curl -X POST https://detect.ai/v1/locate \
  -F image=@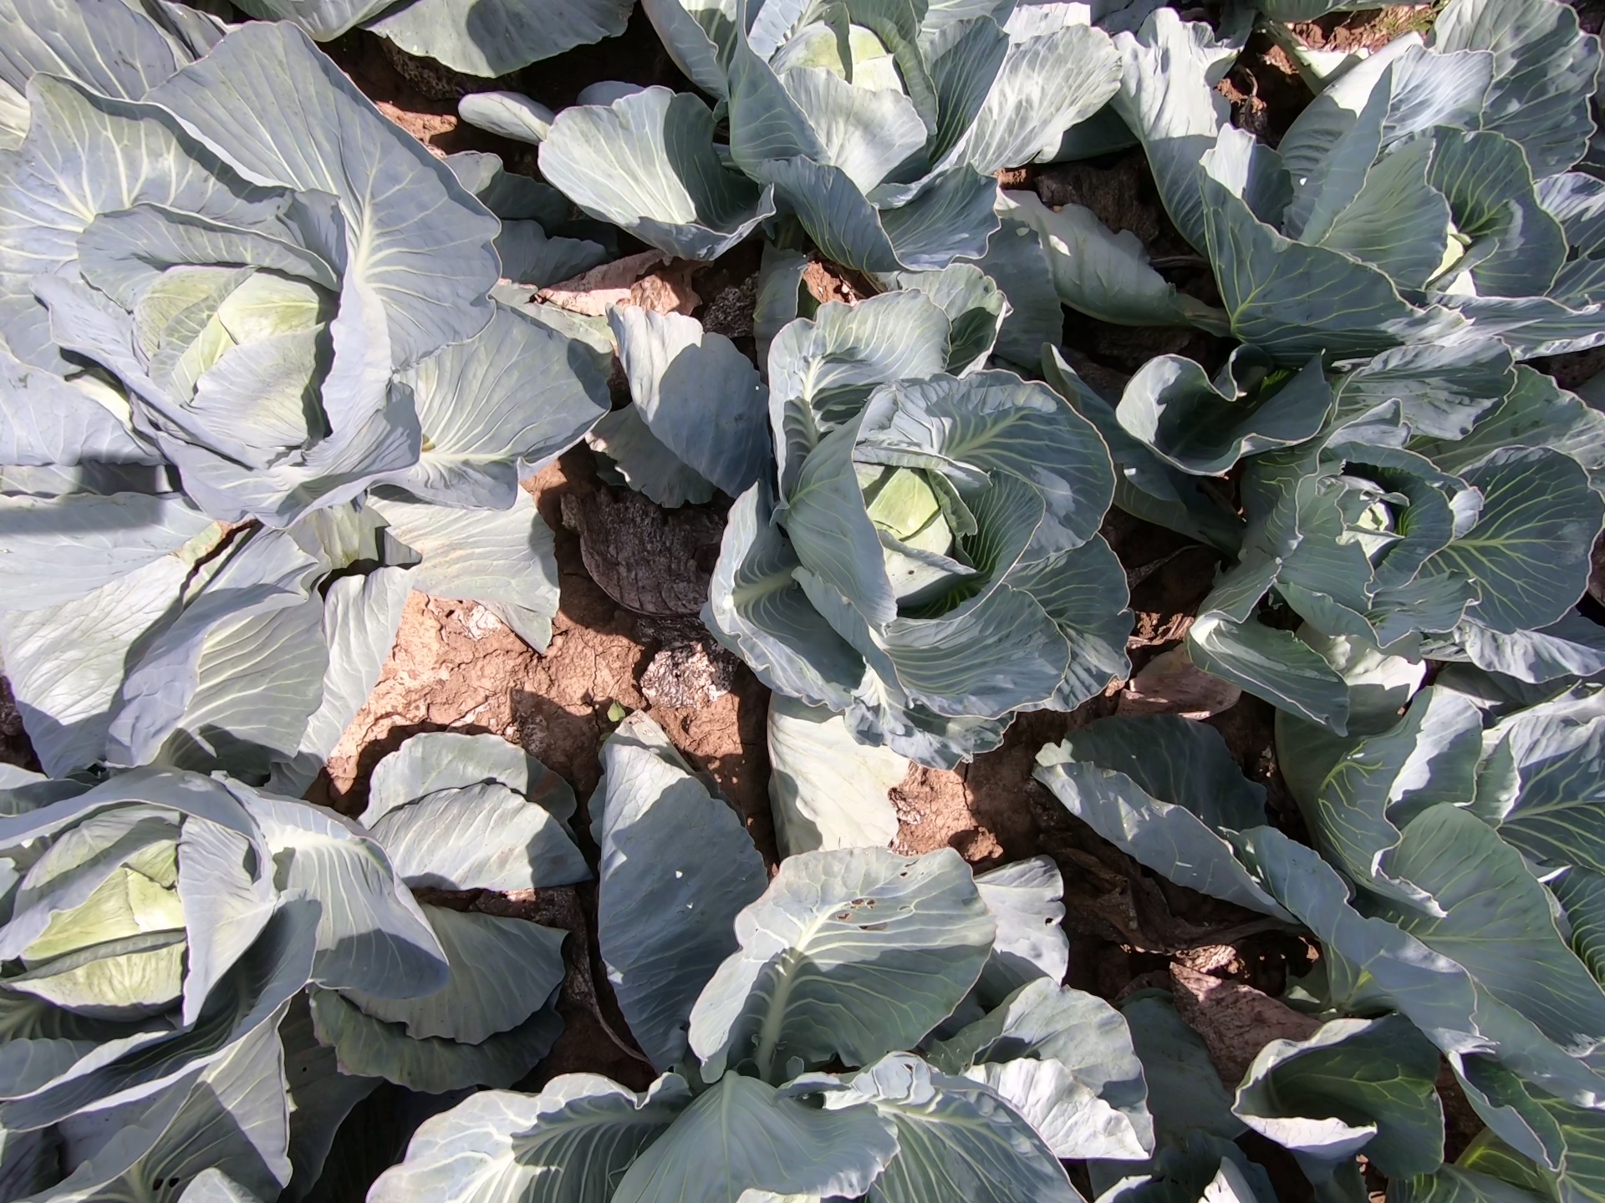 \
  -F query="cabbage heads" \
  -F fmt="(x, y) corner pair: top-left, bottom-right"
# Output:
(613, 1091), (870, 1199)
(808, 434), (971, 607)
(1328, 195), (1473, 309)
(766, 20), (922, 175)
(131, 238), (373, 453)
(13, 800), (265, 1019)
(1381, 848), (1572, 1010)
(1281, 469), (1398, 589)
